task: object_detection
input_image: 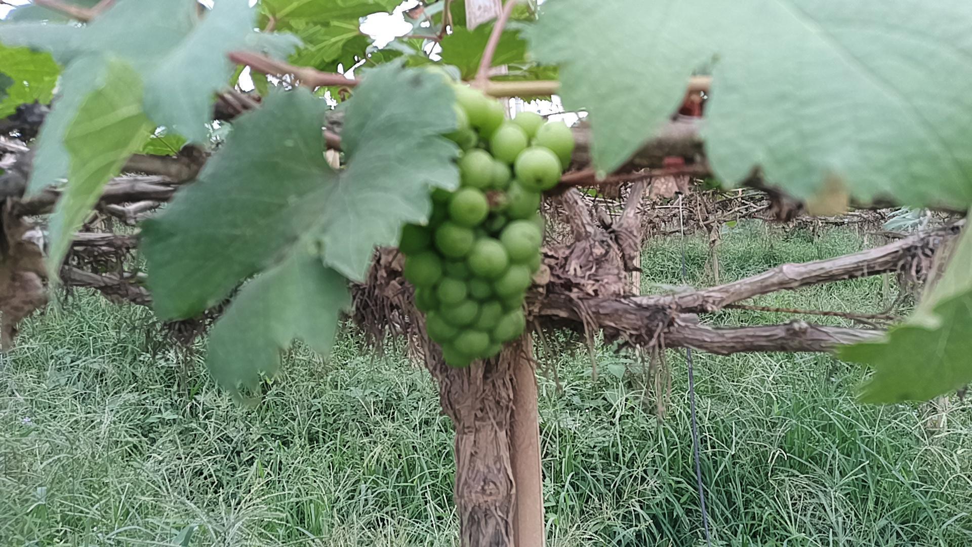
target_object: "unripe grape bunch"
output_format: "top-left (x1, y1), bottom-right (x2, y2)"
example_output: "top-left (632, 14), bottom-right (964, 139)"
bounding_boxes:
top-left (399, 81), bottom-right (574, 367)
